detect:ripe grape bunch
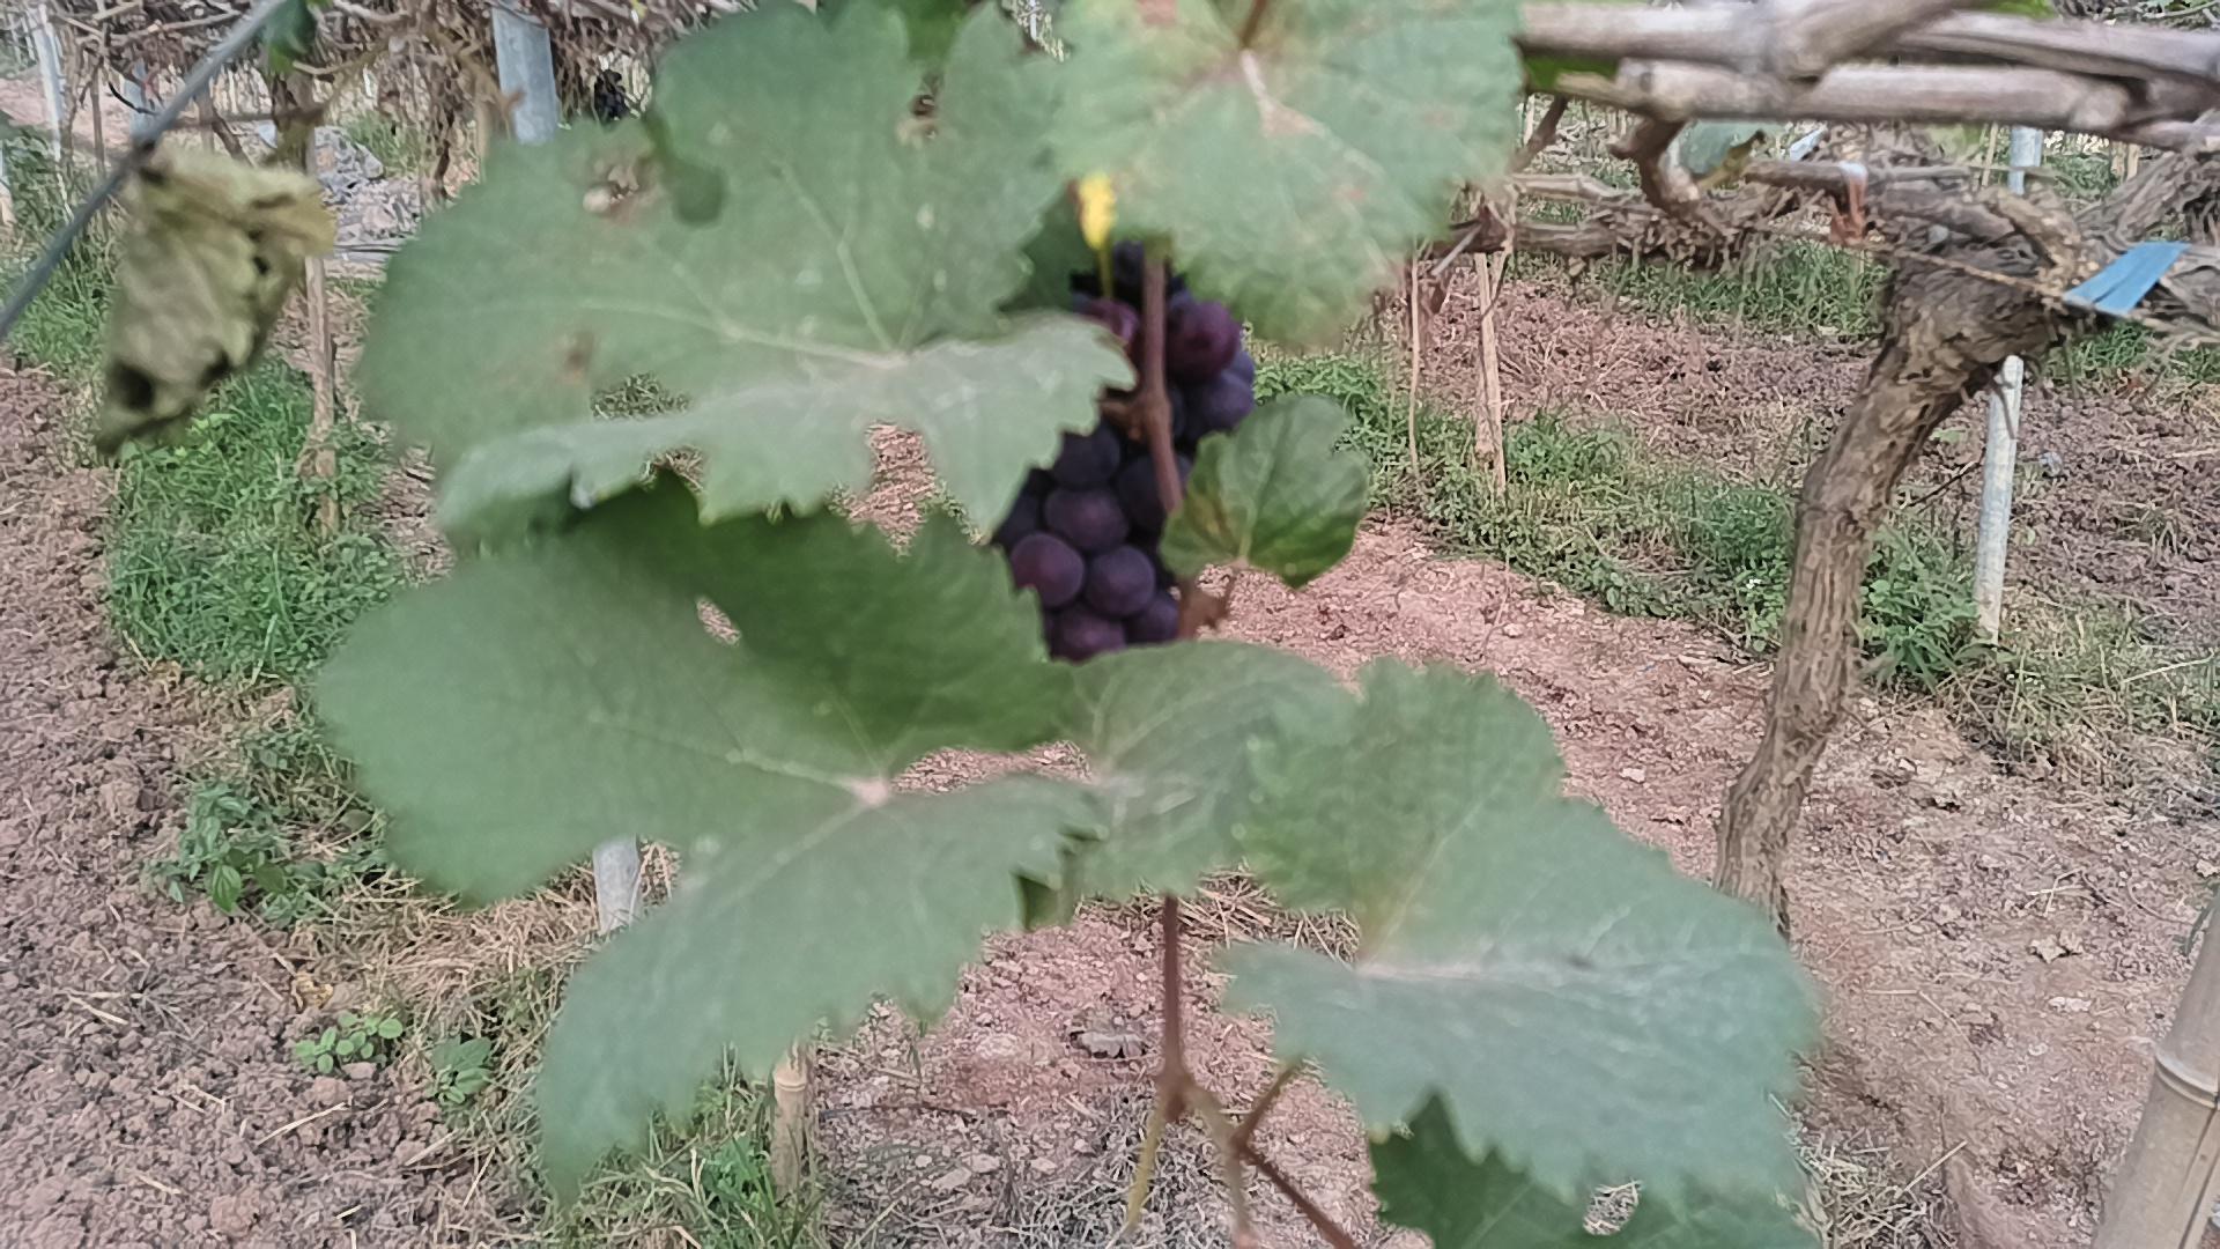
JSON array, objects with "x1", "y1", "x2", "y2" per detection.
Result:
[{"x1": 993, "y1": 243, "x2": 1253, "y2": 662}]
